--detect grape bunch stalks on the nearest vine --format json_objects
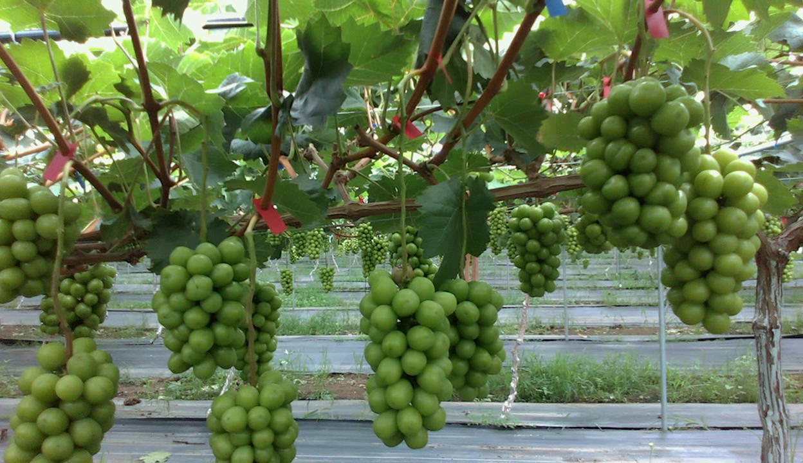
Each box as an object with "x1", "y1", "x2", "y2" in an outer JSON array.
[
  {"x1": 244, "y1": 213, "x2": 257, "y2": 386},
  {"x1": 637, "y1": 0, "x2": 648, "y2": 77},
  {"x1": 458, "y1": 123, "x2": 467, "y2": 280},
  {"x1": 51, "y1": 159, "x2": 73, "y2": 364},
  {"x1": 663, "y1": 8, "x2": 715, "y2": 156},
  {"x1": 396, "y1": 68, "x2": 422, "y2": 287},
  {"x1": 158, "y1": 98, "x2": 208, "y2": 242}
]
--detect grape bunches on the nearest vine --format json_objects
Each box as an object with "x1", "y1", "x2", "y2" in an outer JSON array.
[
  {"x1": 660, "y1": 147, "x2": 768, "y2": 334},
  {"x1": 0, "y1": 167, "x2": 81, "y2": 304},
  {"x1": 3, "y1": 337, "x2": 120, "y2": 462},
  {"x1": 359, "y1": 264, "x2": 457, "y2": 450},
  {"x1": 438, "y1": 278, "x2": 506, "y2": 402},
  {"x1": 577, "y1": 76, "x2": 705, "y2": 249},
  {"x1": 206, "y1": 370, "x2": 300, "y2": 462},
  {"x1": 151, "y1": 236, "x2": 250, "y2": 379}
]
